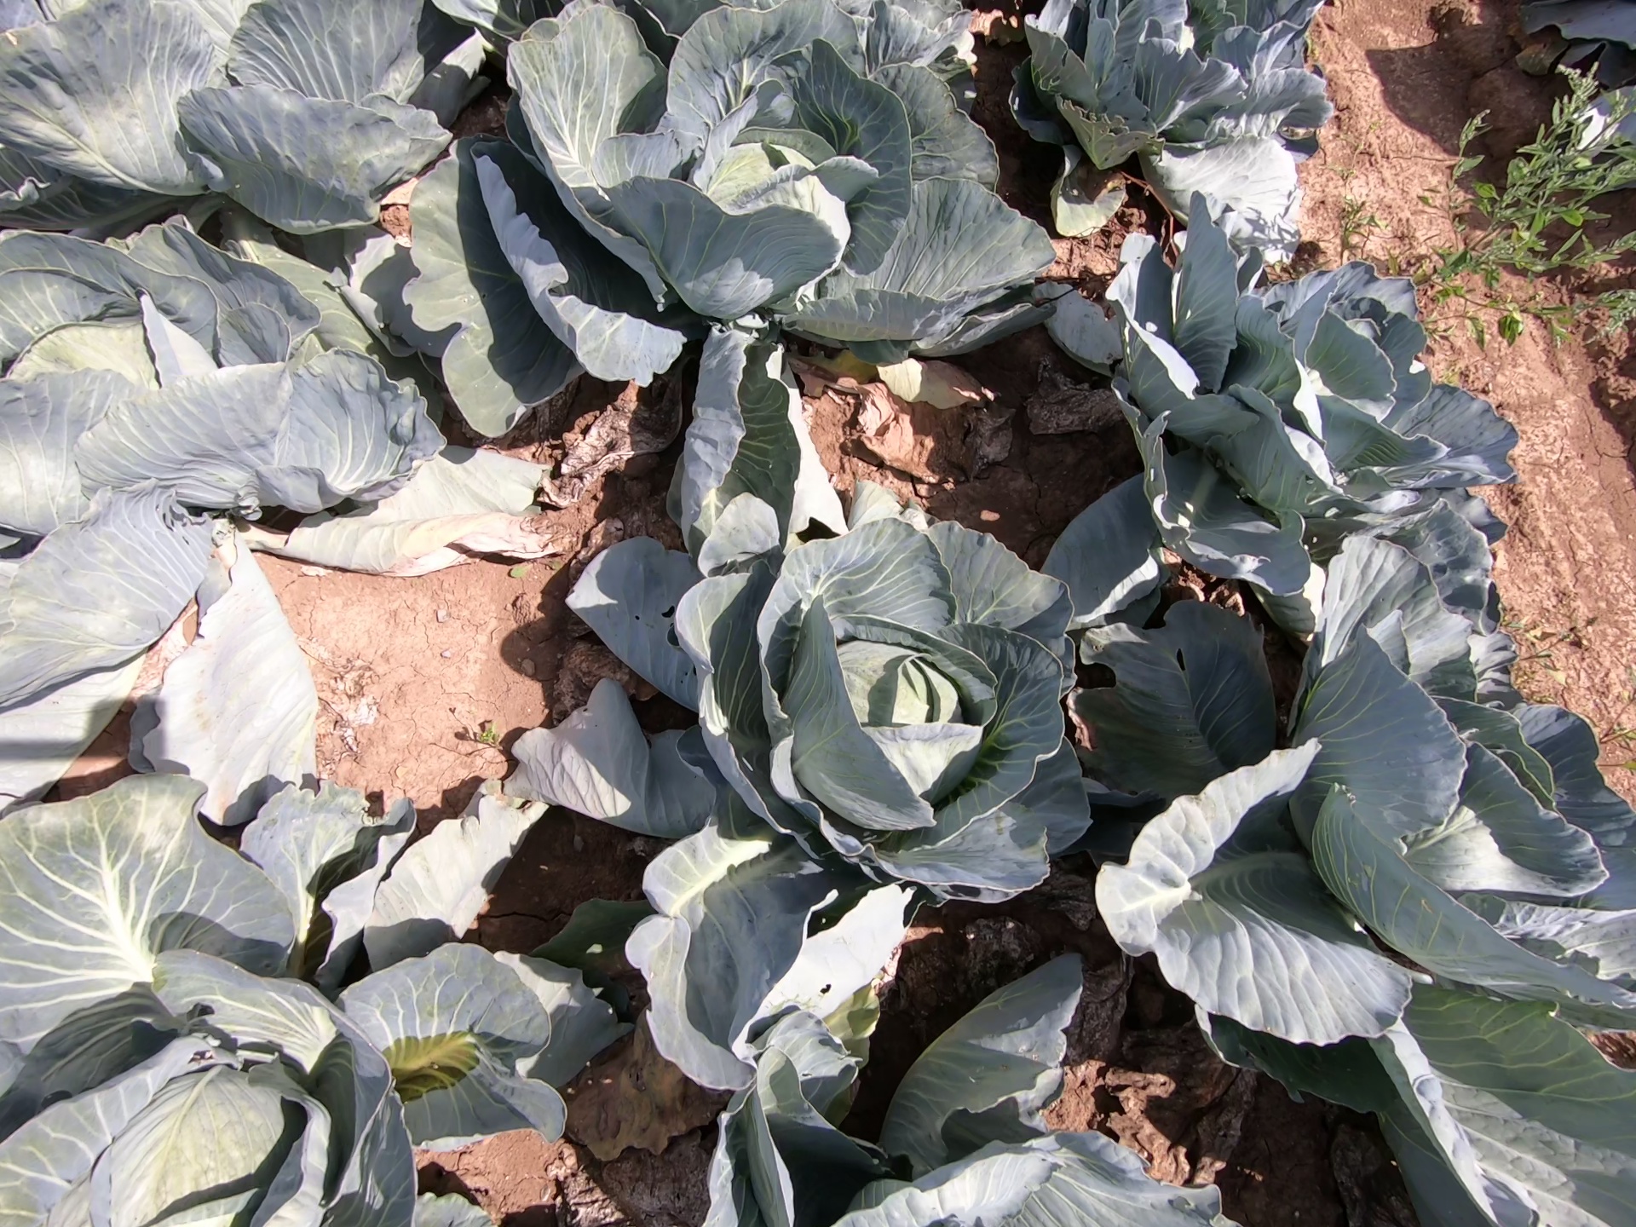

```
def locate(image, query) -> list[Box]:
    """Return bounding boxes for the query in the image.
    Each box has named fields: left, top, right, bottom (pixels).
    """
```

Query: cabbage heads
left=789, top=627, right=977, bottom=815
left=686, top=133, right=850, bottom=293
left=33, top=2, right=296, bottom=123
left=7, top=312, right=234, bottom=498
left=31, top=1064, right=339, bottom=1224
